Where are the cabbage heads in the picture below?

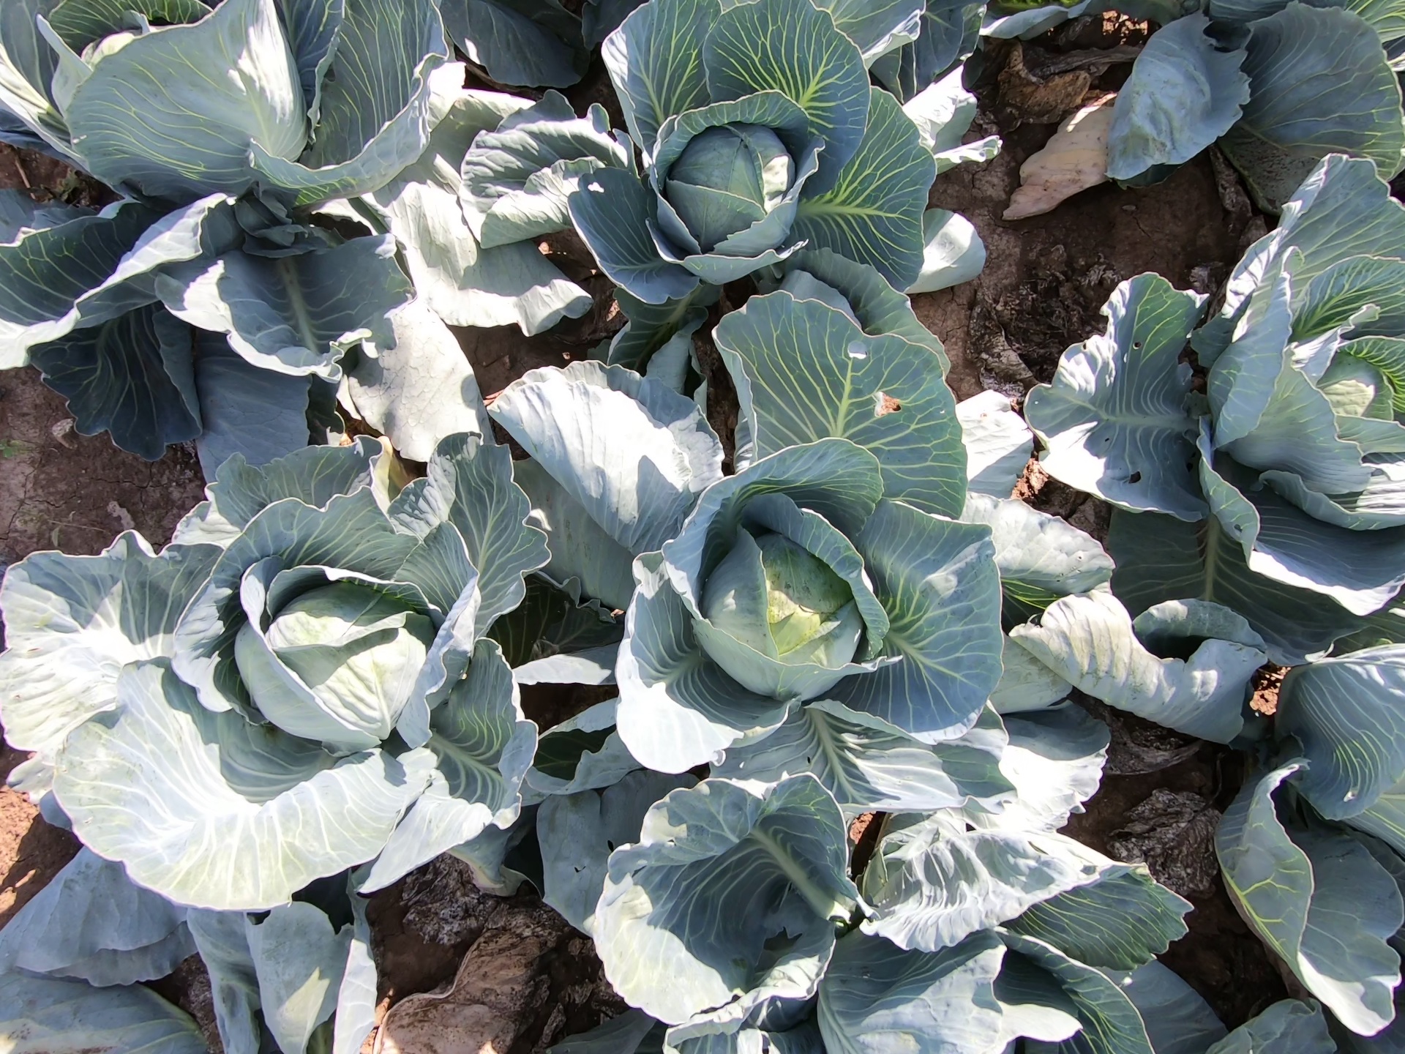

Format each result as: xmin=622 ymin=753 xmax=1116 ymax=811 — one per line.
xmin=706 ymin=531 xmax=860 ymax=697
xmin=259 ymin=580 xmax=430 ymax=739
xmin=83 ymin=23 xmax=278 ymax=187
xmin=849 ymin=939 xmax=1015 ymax=1052
xmin=670 ymin=121 xmax=789 ymax=246
xmin=1245 ymin=344 xmax=1378 ymax=453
